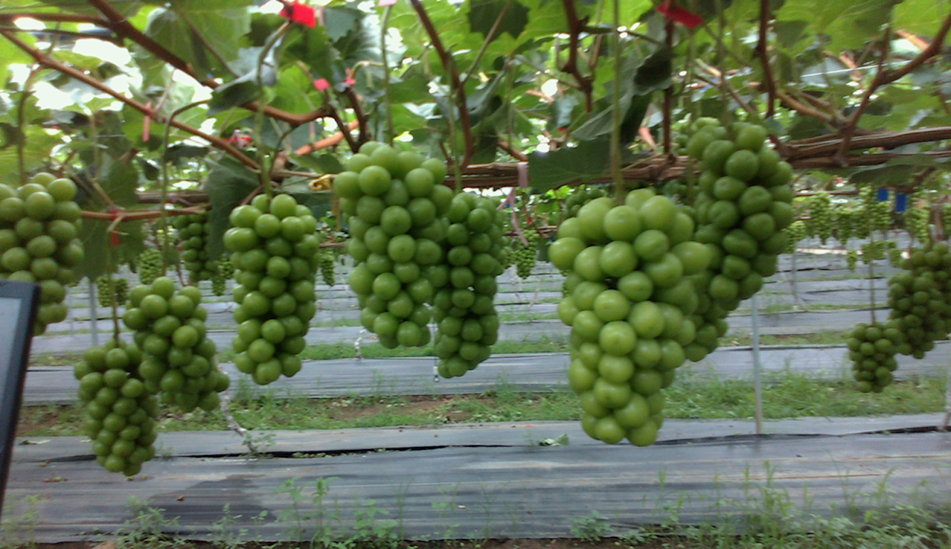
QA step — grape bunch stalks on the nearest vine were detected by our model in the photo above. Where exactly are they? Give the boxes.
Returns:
[716,0,735,141]
[159,99,210,275]
[16,66,40,185]
[447,59,463,191]
[254,21,292,204]
[380,7,398,148]
[610,1,625,206]
[104,220,119,347]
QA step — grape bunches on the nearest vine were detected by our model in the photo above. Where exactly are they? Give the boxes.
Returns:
[222,194,321,385]
[0,172,85,338]
[546,188,711,448]
[333,142,456,348]
[428,193,504,377]
[74,341,157,475]
[688,124,796,315]
[122,278,229,413]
